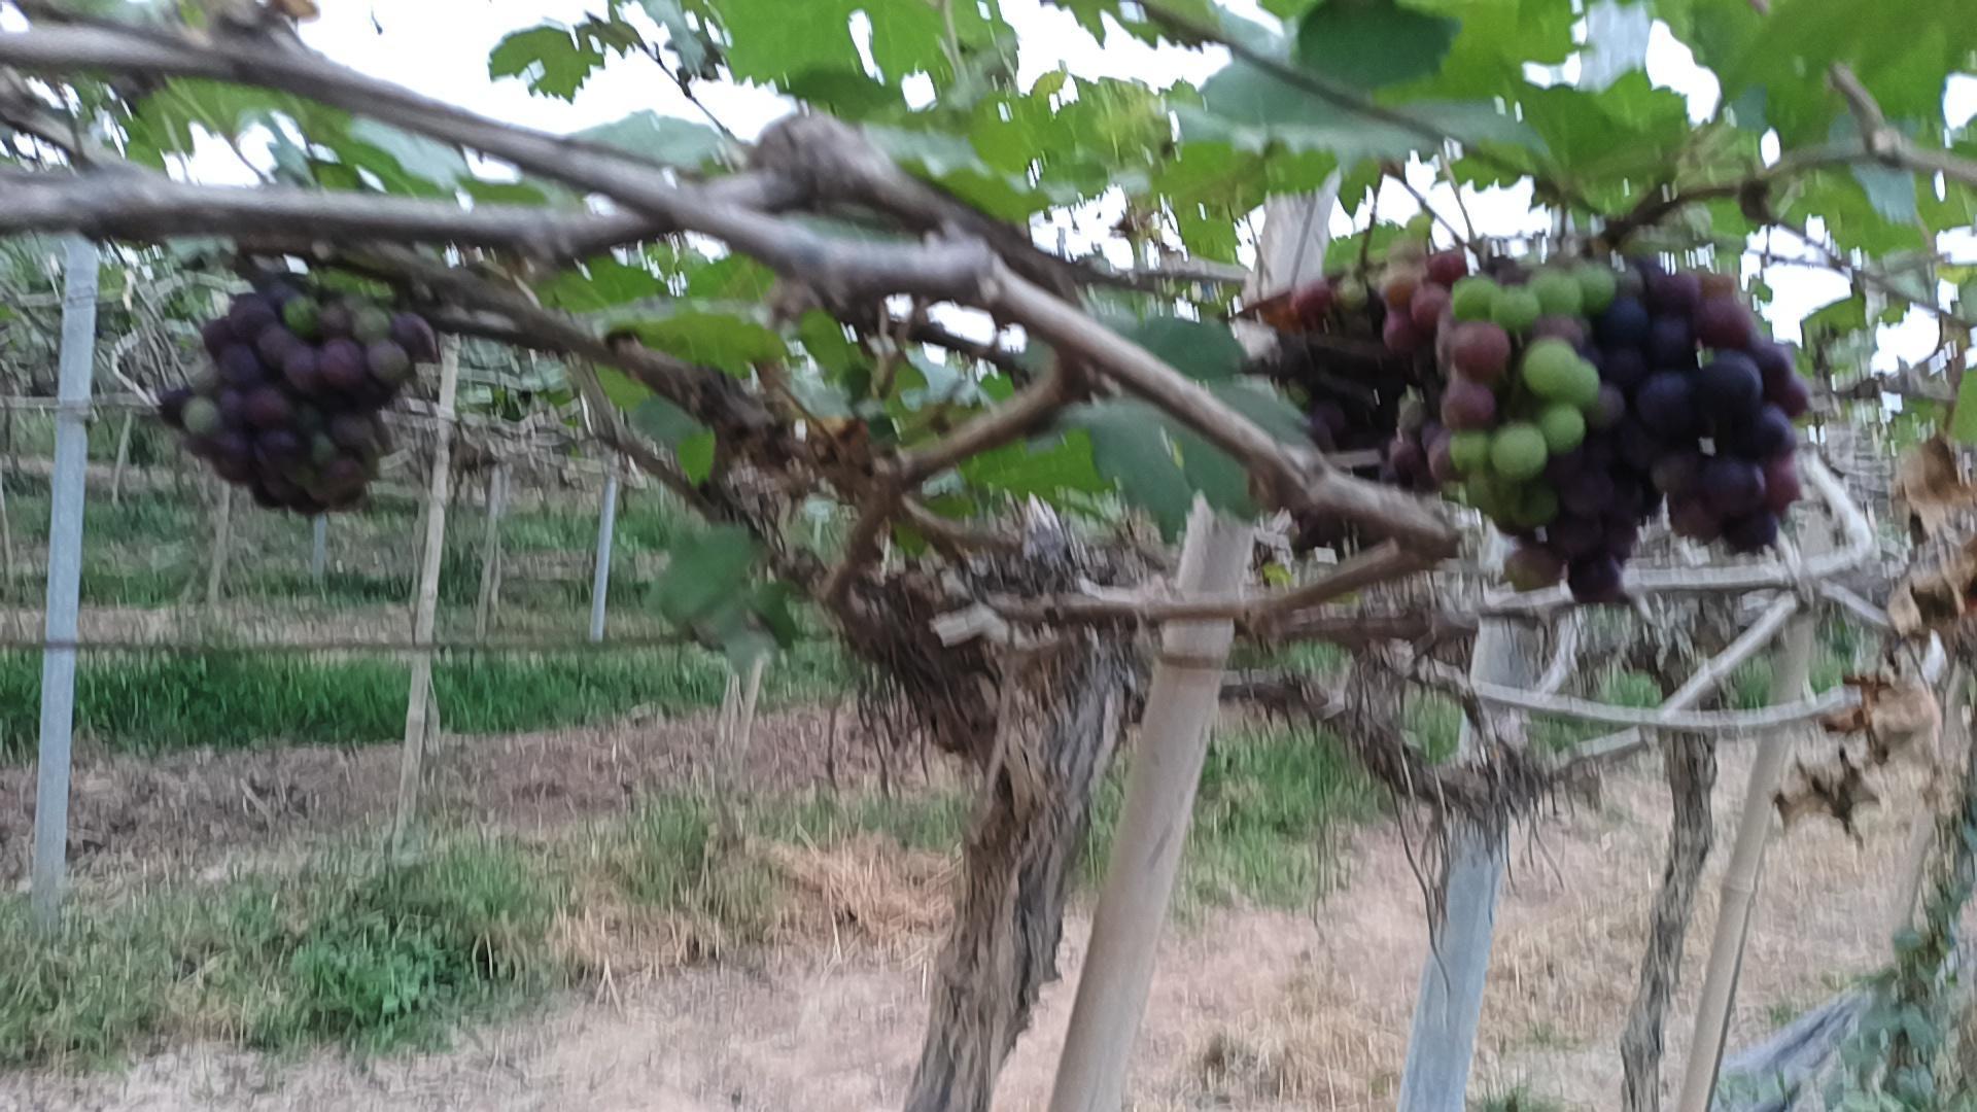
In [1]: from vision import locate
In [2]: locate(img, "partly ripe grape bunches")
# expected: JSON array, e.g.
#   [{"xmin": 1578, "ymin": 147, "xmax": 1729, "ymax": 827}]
[
  {"xmin": 1244, "ymin": 245, "xmax": 1808, "ymax": 602},
  {"xmin": 160, "ymin": 264, "xmax": 433, "ymax": 515}
]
